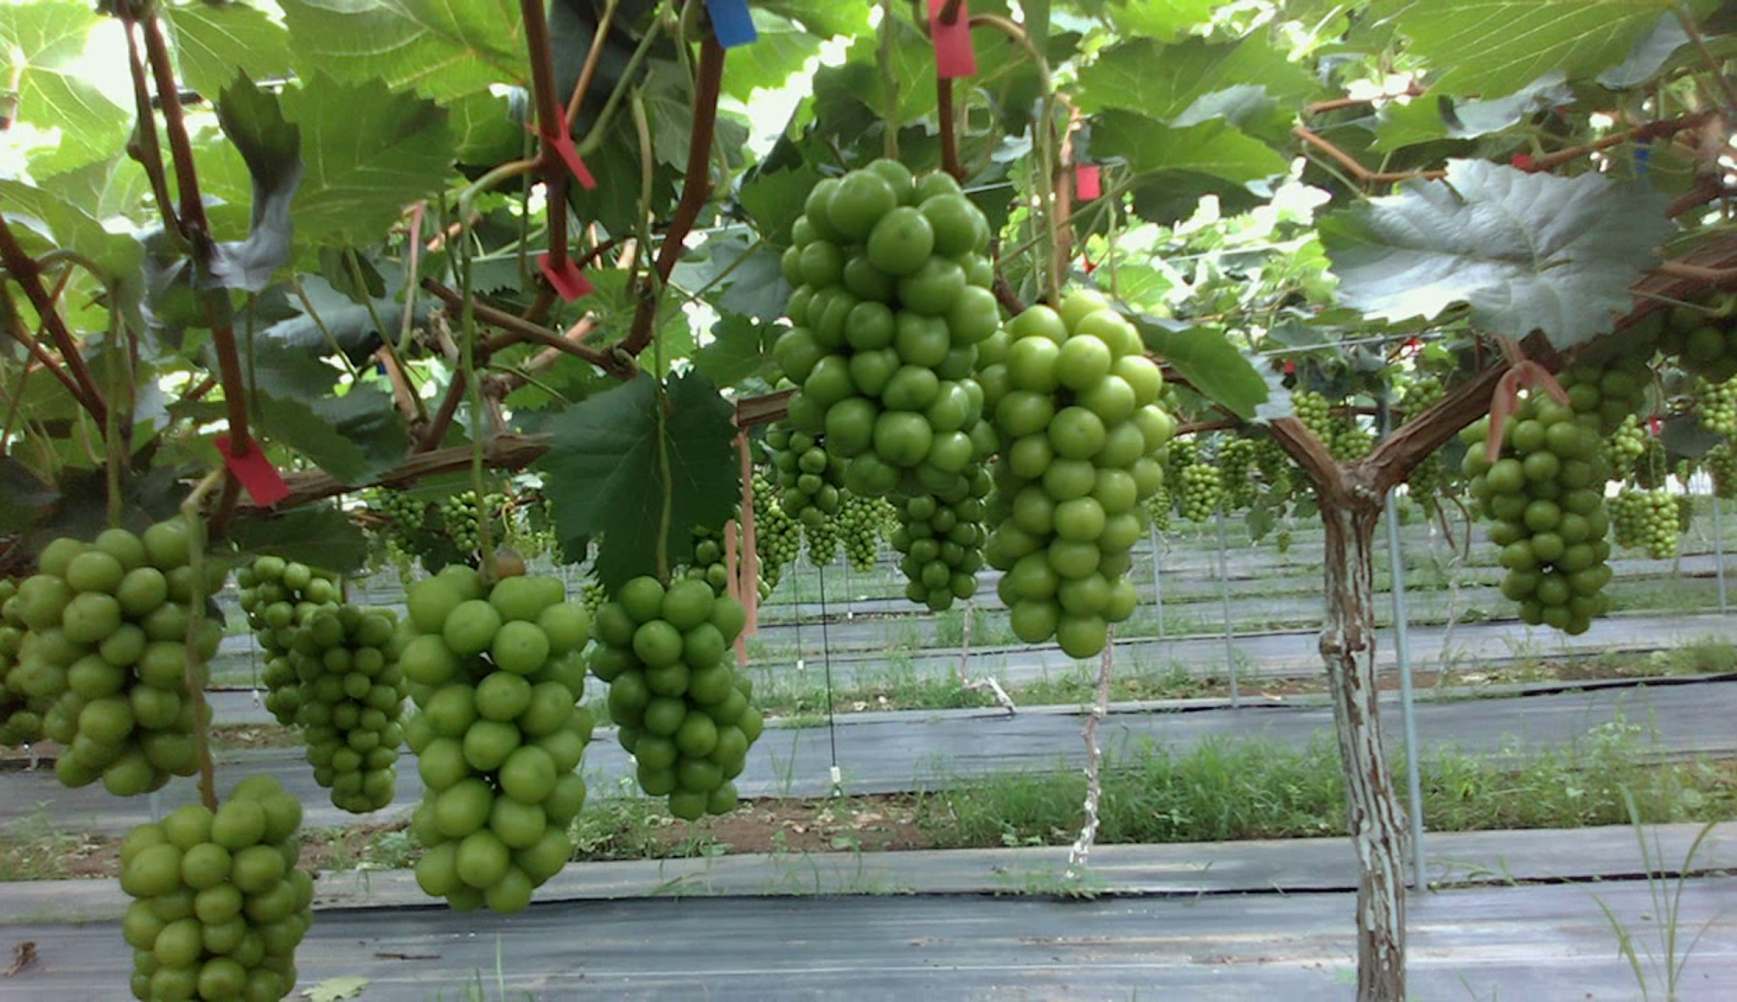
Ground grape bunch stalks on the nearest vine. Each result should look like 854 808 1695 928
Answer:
180 462 227 814
970 14 1059 313
873 1 901 159
459 156 540 590
35 250 121 527
629 228 672 591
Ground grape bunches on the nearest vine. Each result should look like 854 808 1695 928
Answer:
978 288 1169 660
7 515 228 797
772 159 1002 500
391 548 596 916
120 775 315 1001
589 576 763 821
